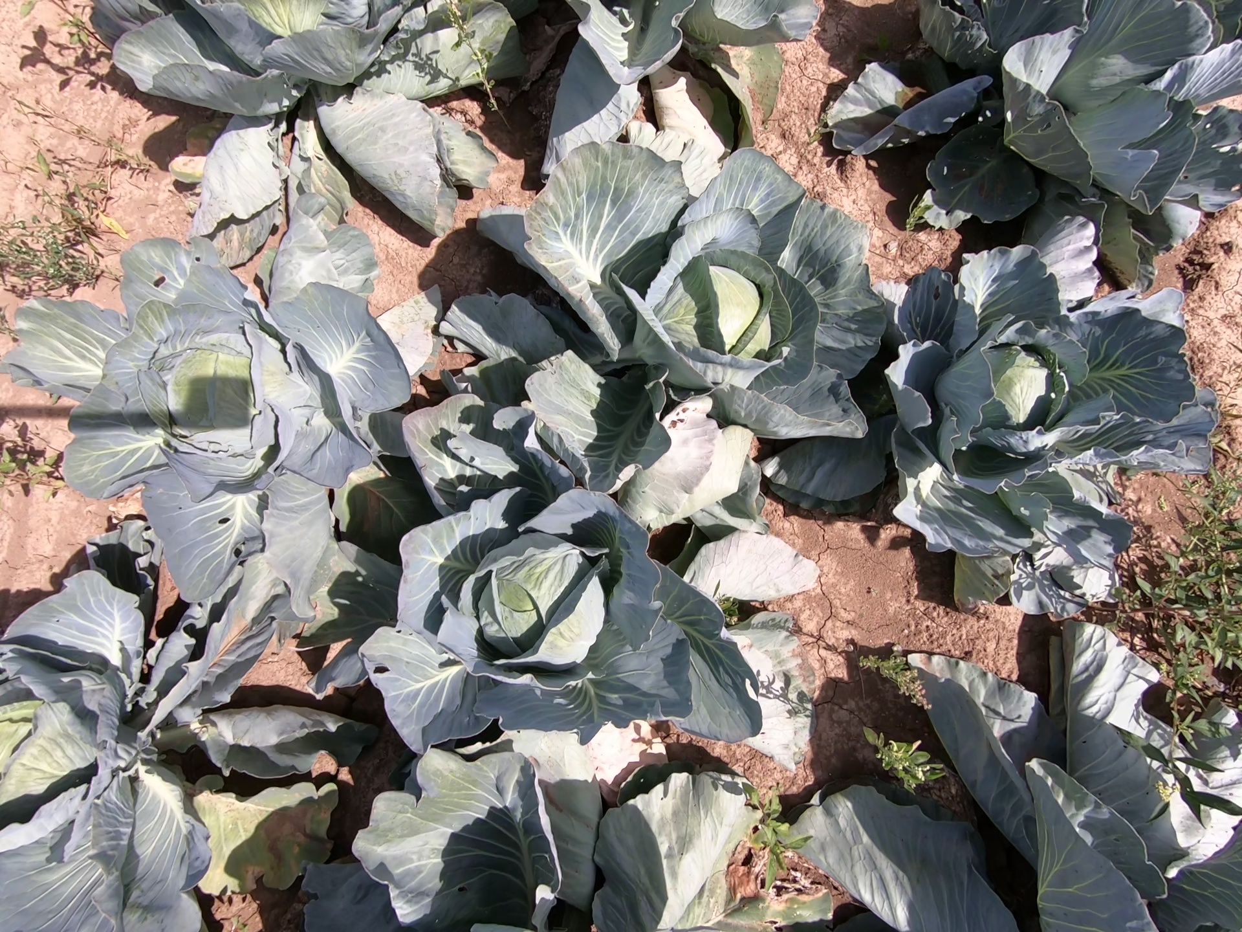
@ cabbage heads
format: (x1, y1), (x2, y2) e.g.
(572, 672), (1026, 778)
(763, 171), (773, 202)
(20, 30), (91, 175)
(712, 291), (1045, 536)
(646, 258), (774, 378)
(477, 535), (603, 667)
(204, 1), (370, 70)
(1, 673), (109, 852)
(164, 333), (290, 454)
(947, 339), (1071, 439)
